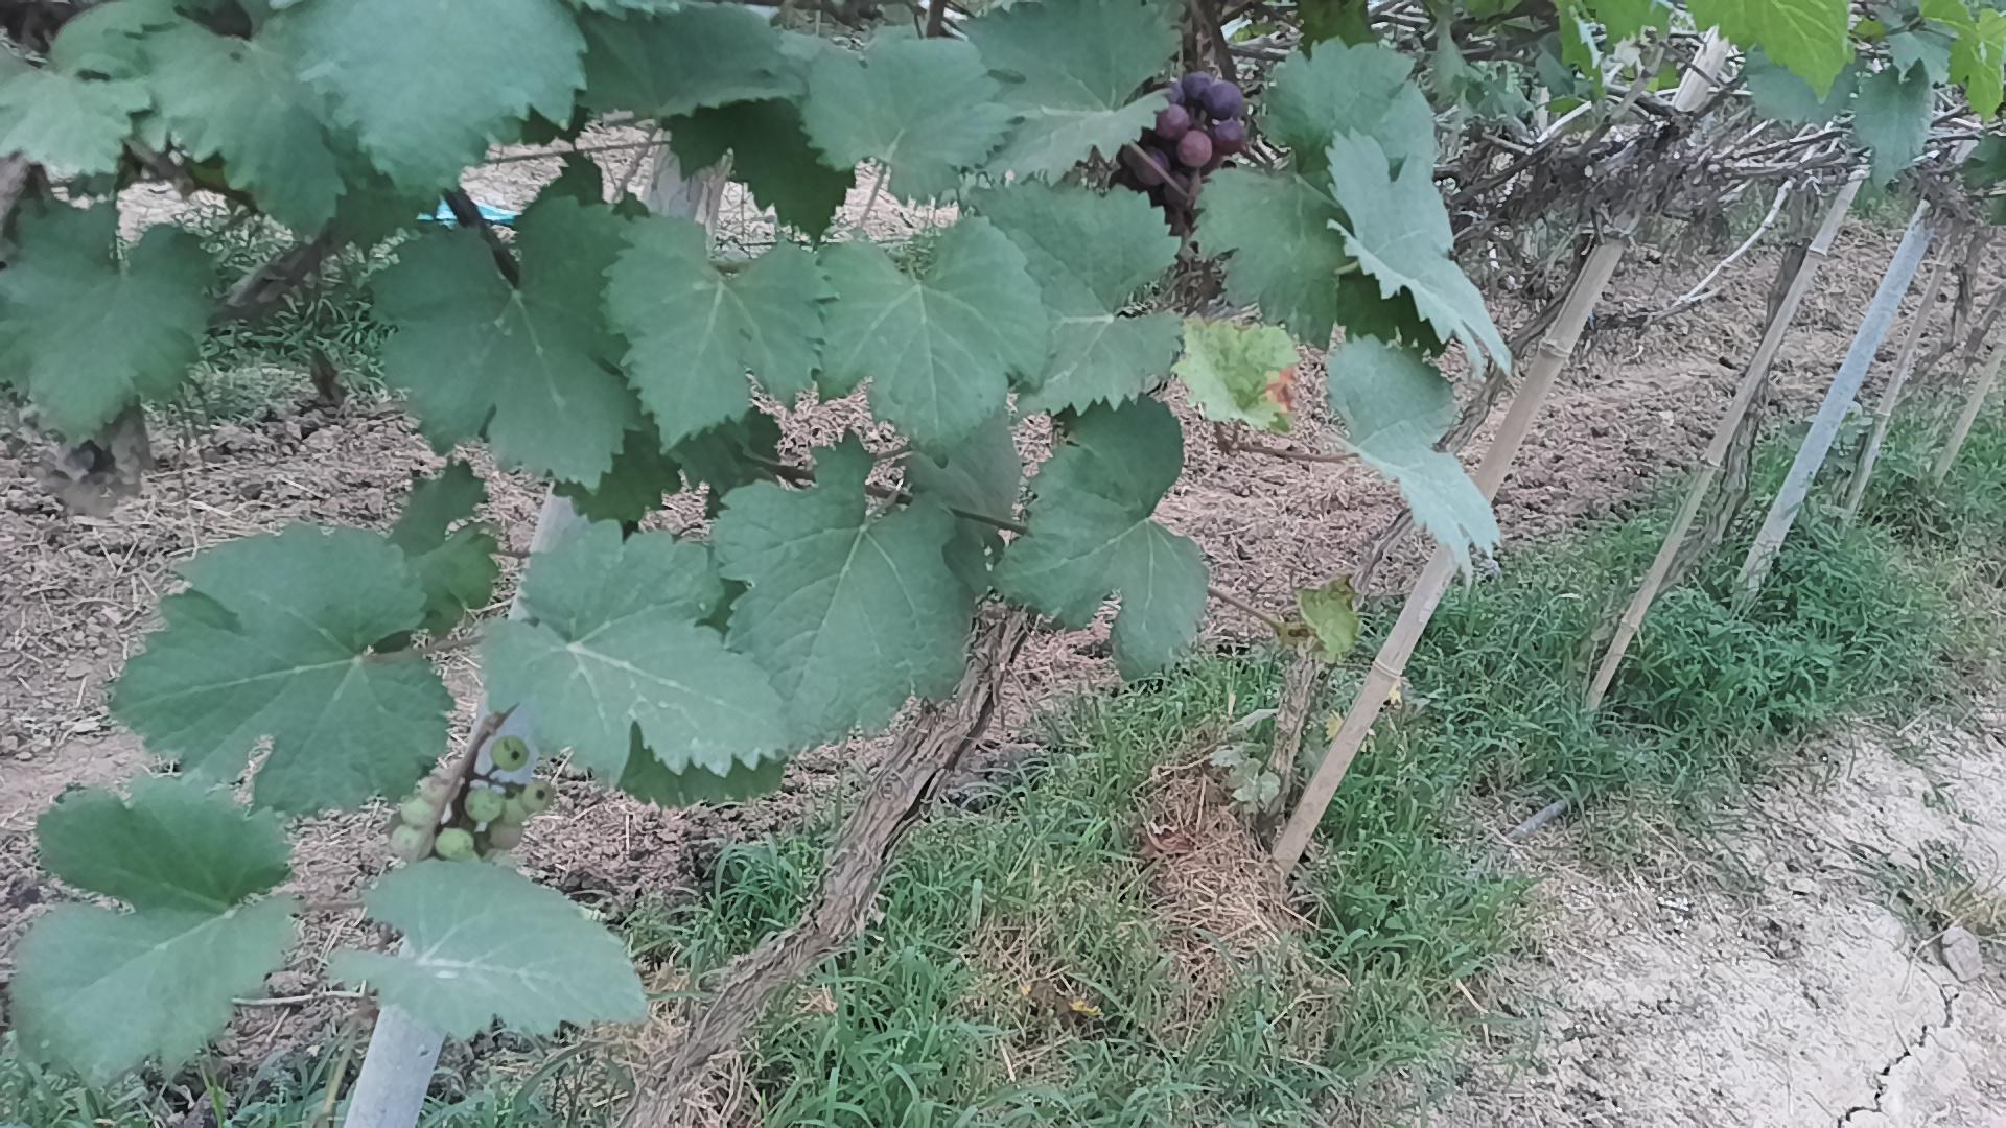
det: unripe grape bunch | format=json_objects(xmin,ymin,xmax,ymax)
[{"xmin": 390, "ymin": 709, "xmax": 555, "ymax": 862}]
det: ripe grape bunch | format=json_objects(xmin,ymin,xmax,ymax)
[{"xmin": 1111, "ymin": 72, "xmax": 1250, "ymax": 235}]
